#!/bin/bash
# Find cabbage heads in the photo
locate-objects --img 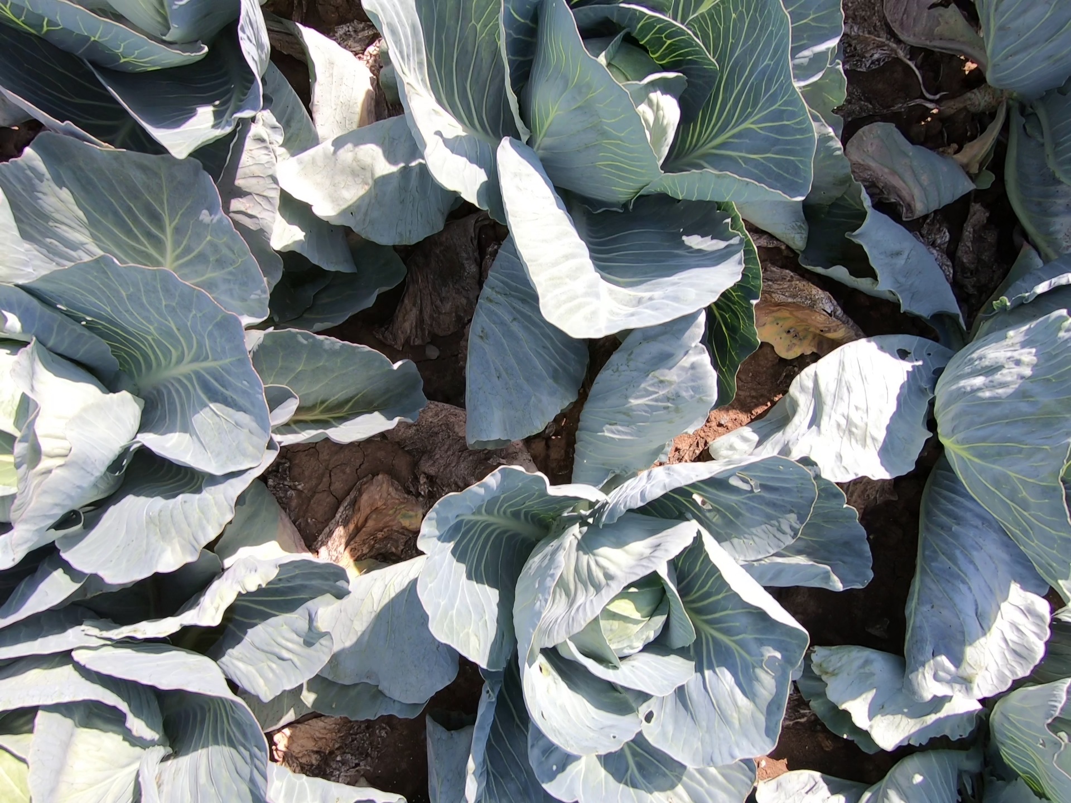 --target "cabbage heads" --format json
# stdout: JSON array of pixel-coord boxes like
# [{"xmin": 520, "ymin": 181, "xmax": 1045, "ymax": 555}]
[
  {"xmin": 563, "ymin": 533, "xmax": 671, "ymax": 655},
  {"xmin": 2, "ymin": 698, "xmax": 152, "ymax": 802},
  {"xmin": 0, "ymin": 344, "xmax": 106, "ymax": 526},
  {"xmin": 564, "ymin": 39, "xmax": 676, "ymax": 178}
]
